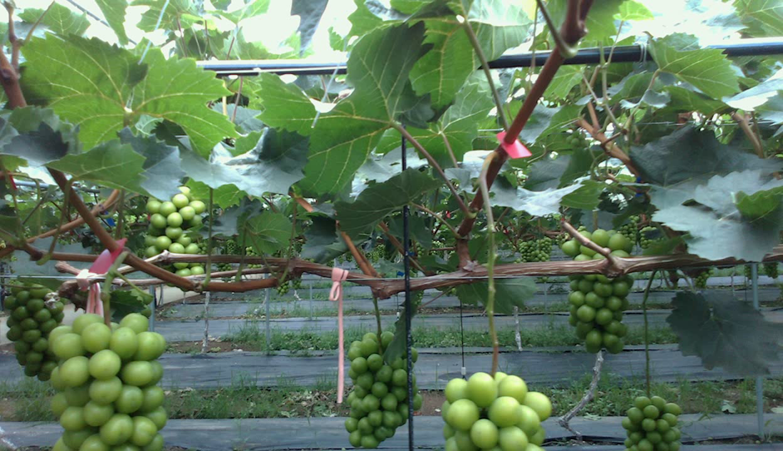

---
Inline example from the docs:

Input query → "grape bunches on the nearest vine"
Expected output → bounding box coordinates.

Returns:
[441,371,552,450]
[48,314,167,450]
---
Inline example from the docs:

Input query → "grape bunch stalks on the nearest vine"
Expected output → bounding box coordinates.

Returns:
[99,250,129,331]
[477,150,499,378]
